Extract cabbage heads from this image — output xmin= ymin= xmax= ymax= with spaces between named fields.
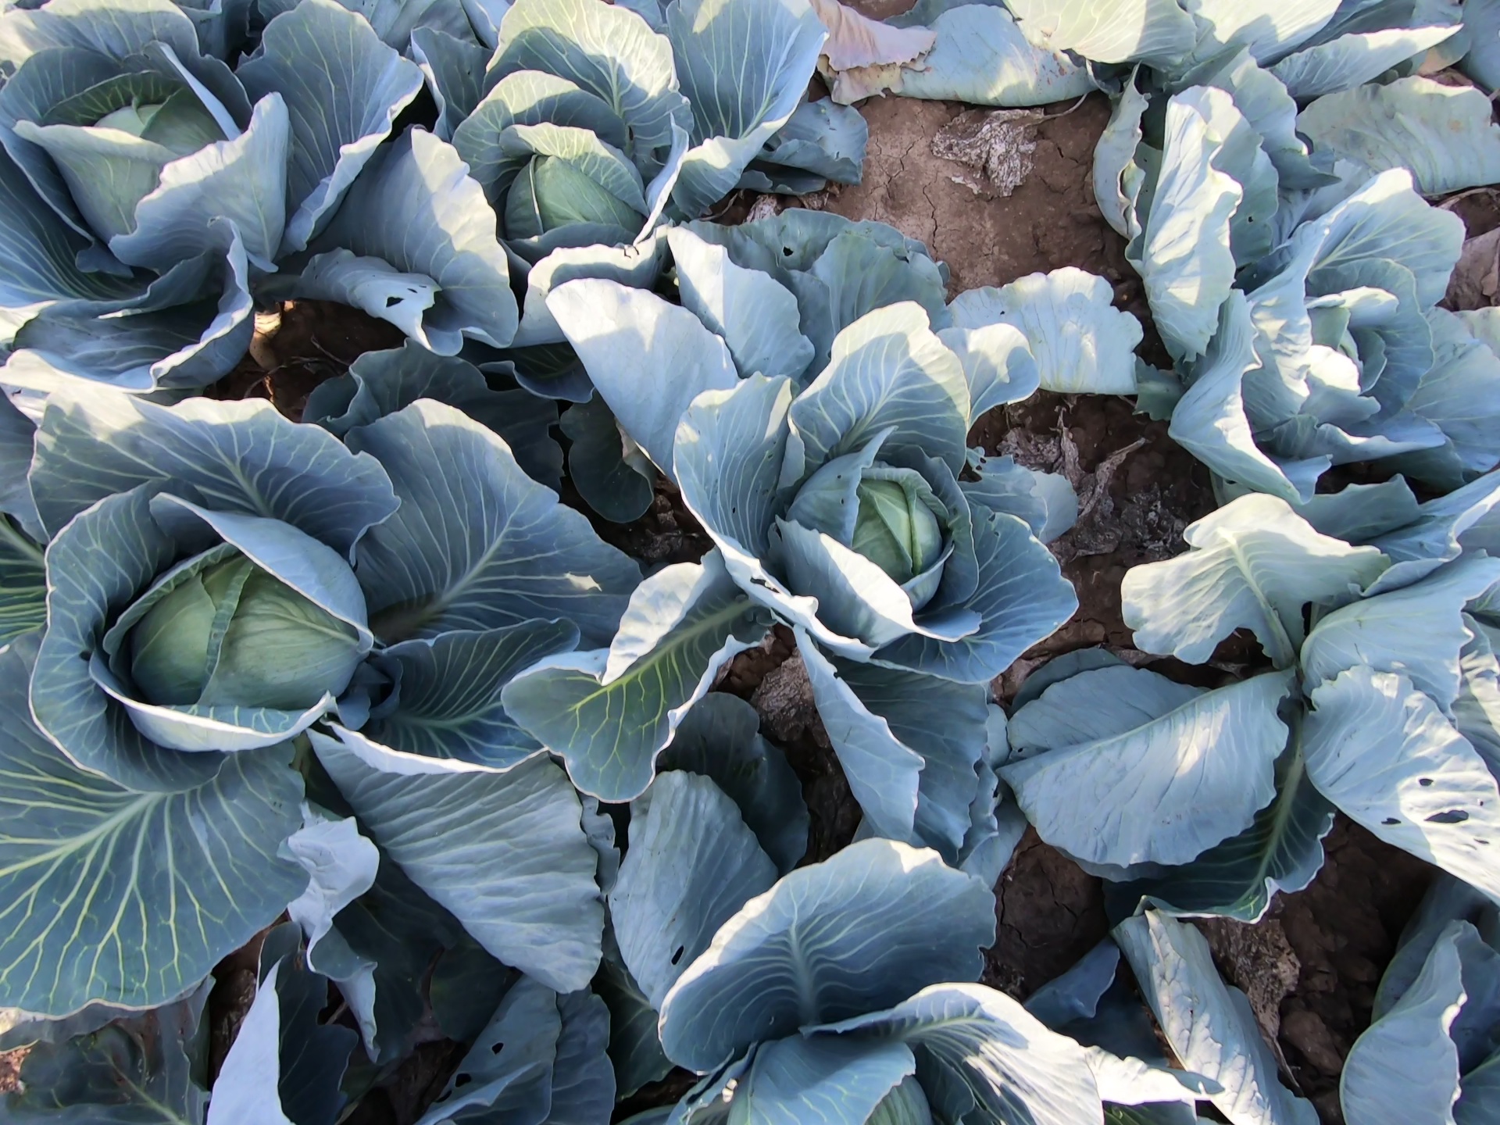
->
xmin=507 ymin=137 xmax=645 ymax=270
xmin=745 ymin=1048 xmax=930 ymax=1118
xmin=127 ymin=540 xmax=365 ymax=715
xmin=797 ymin=460 xmax=938 ymax=610
xmin=1270 ymin=305 xmax=1362 ymax=427
xmin=1353 ymin=605 xmax=1497 ymax=790
xmin=75 ymin=102 xmax=250 ymax=252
